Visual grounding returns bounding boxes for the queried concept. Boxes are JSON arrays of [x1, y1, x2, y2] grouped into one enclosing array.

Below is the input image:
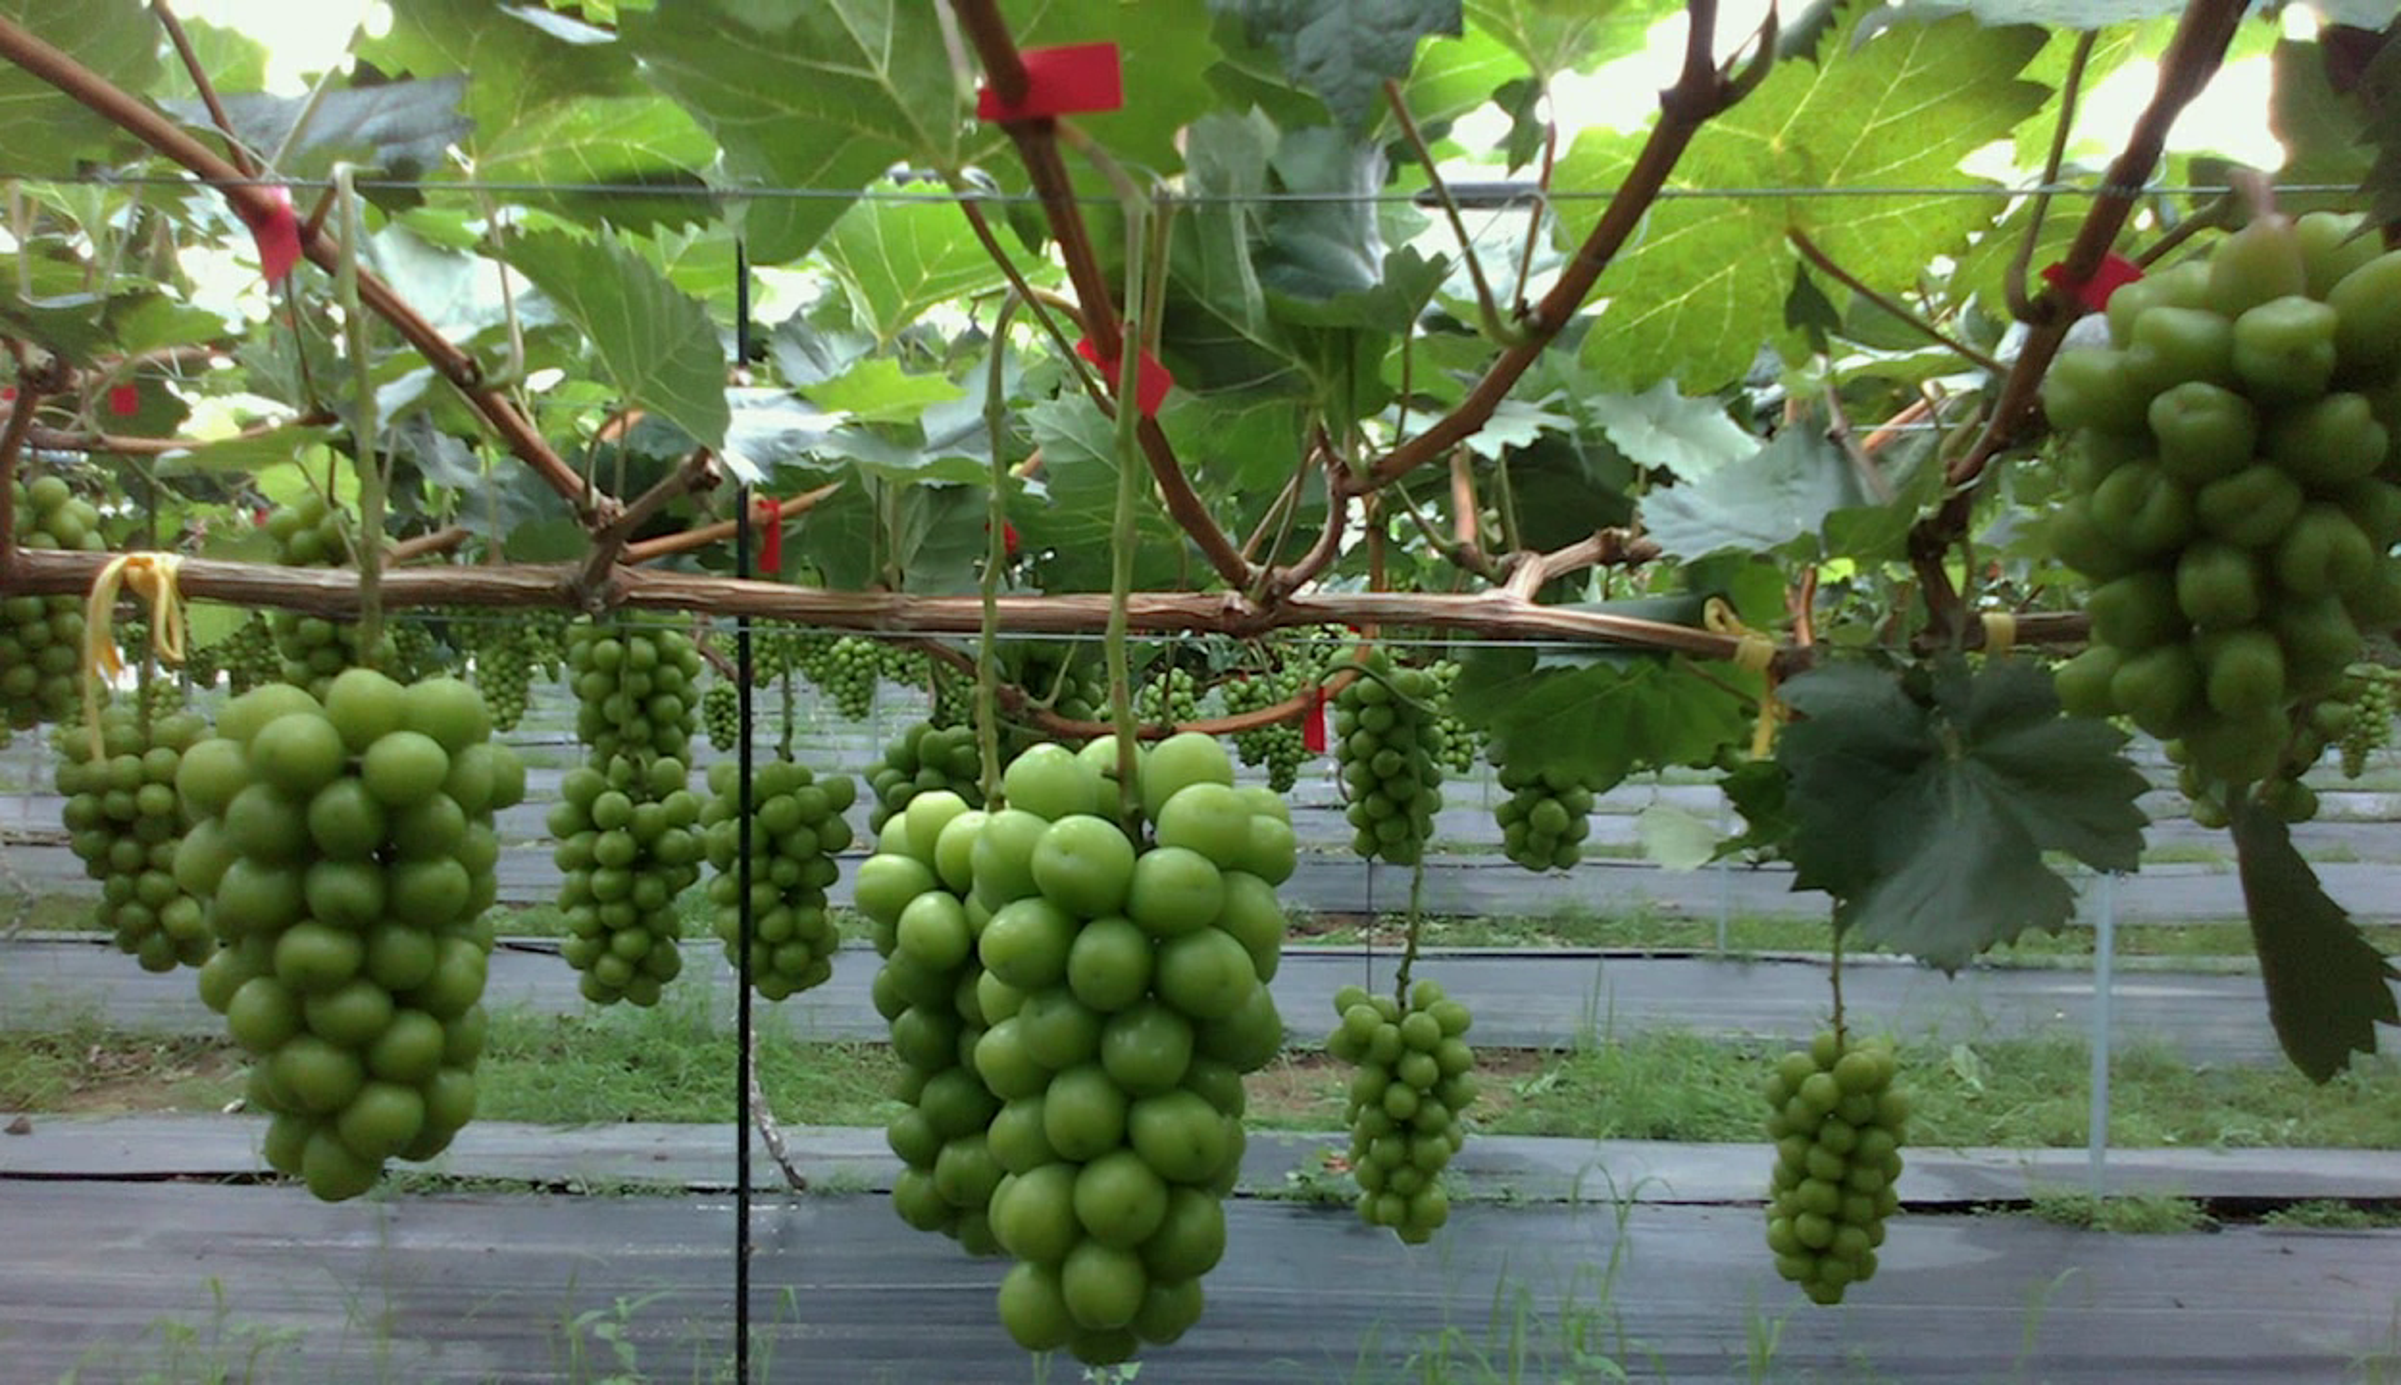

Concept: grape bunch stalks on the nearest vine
[[972, 283, 1022, 810], [1081, 144, 1149, 860], [333, 167, 387, 669], [2226, 171, 2272, 212]]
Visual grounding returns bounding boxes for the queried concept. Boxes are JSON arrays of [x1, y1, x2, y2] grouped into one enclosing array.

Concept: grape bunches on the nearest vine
[[177, 669, 527, 1204], [854, 791, 1002, 1254], [973, 731, 1297, 1370], [2039, 214, 2399, 789]]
